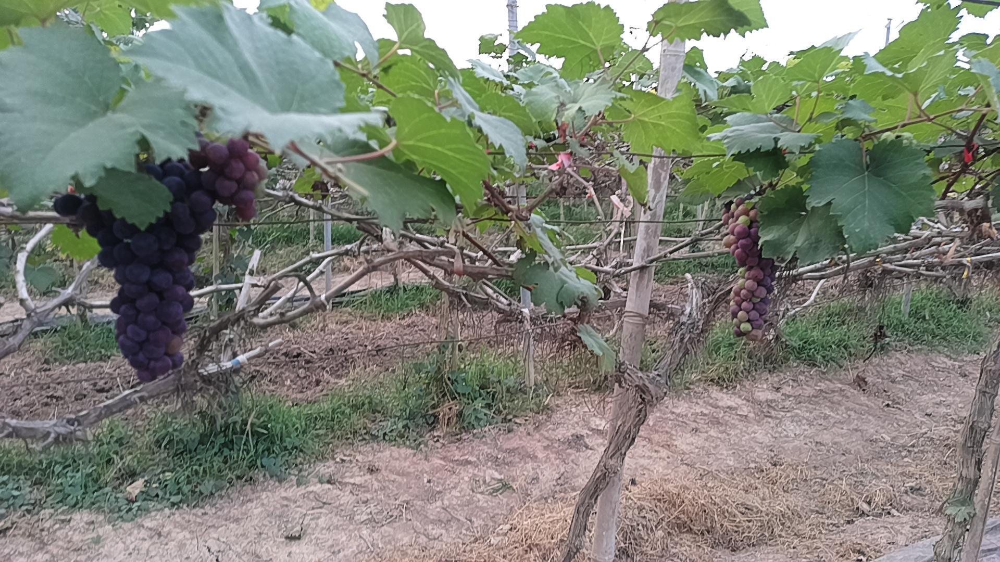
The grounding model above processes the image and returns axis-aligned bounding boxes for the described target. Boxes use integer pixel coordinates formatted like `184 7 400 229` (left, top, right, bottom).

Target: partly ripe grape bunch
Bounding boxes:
721 198 776 340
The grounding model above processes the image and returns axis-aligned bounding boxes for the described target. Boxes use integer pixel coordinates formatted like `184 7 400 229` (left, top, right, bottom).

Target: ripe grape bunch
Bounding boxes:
53 138 266 382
